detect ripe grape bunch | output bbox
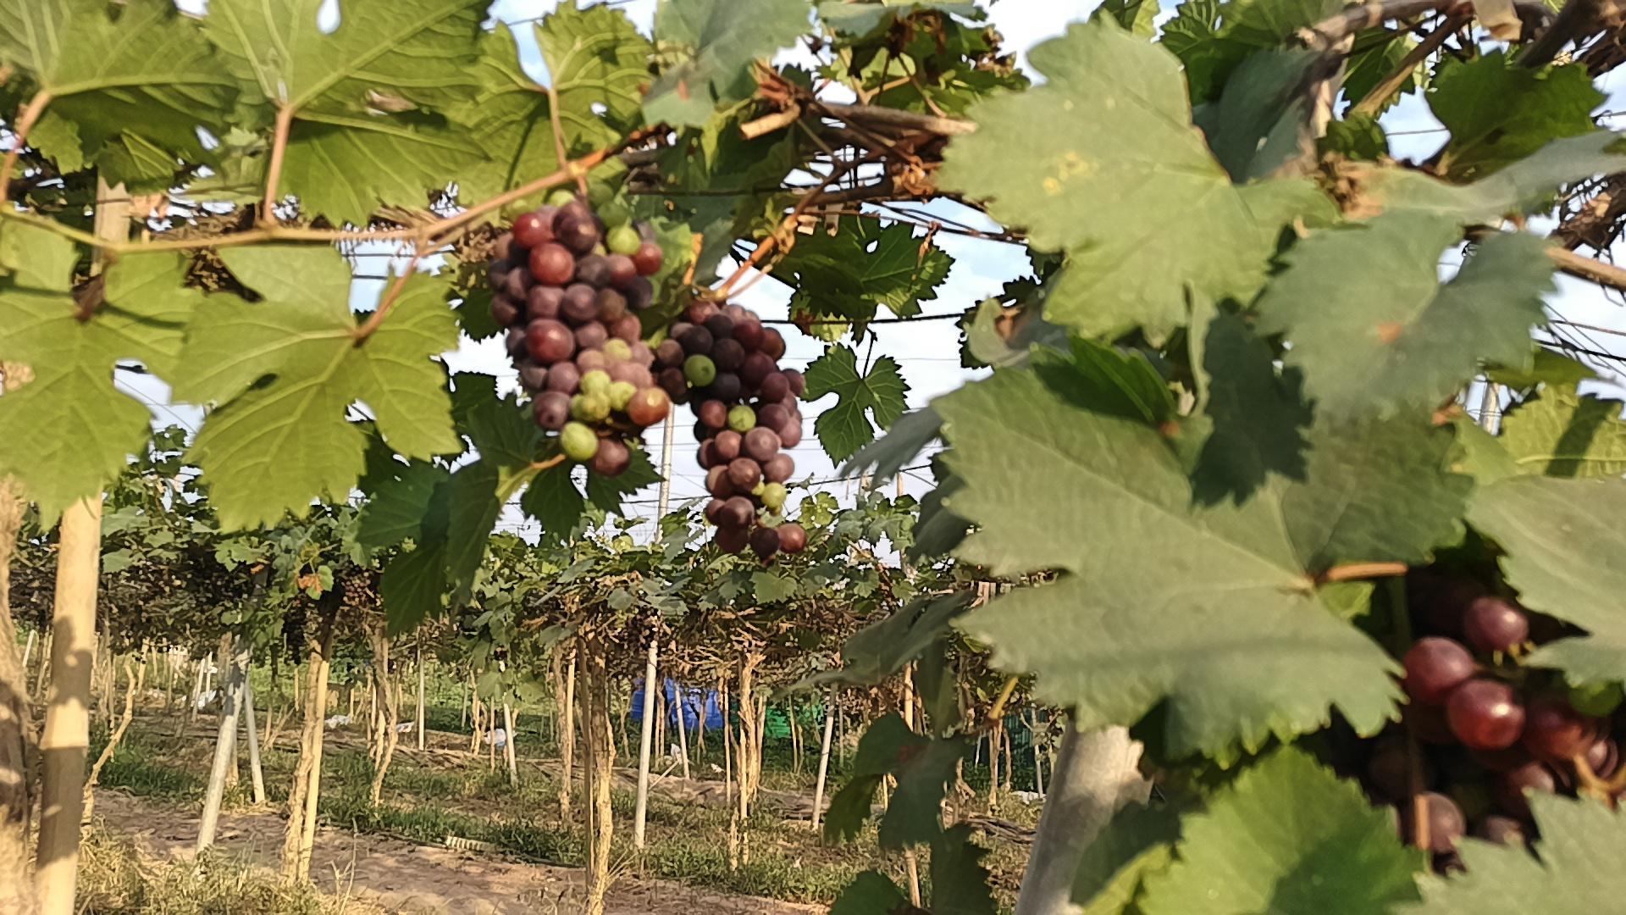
[1380,579,1625,854]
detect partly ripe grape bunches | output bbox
[670,297,804,552]
[490,198,670,474]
